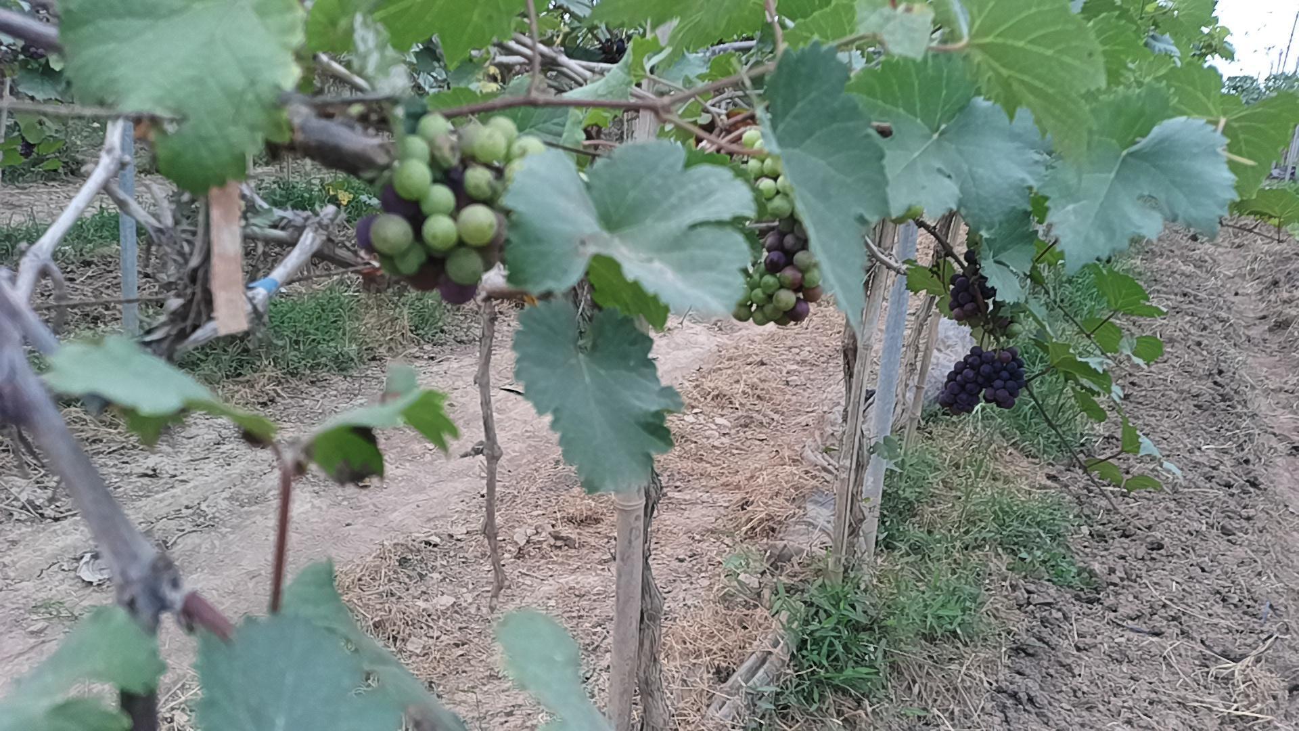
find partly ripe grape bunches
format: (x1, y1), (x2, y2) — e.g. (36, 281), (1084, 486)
(733, 131), (821, 325)
(357, 114), (543, 303)
(949, 250), (1023, 339)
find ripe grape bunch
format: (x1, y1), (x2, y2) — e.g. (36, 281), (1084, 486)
(936, 346), (1026, 414)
